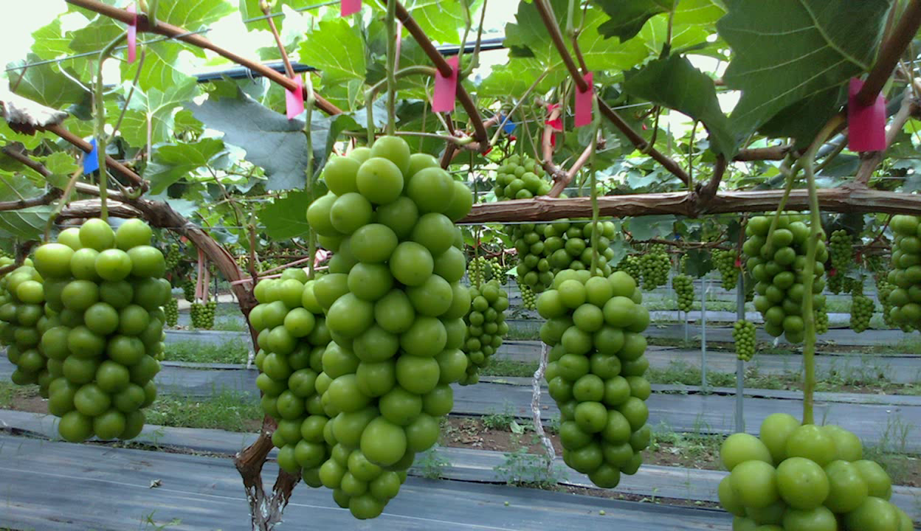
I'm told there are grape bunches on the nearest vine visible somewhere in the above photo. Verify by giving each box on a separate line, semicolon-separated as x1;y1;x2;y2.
717;413;913;530
33;218;173;442
306;136;474;472
249;268;332;488
0;264;52;398
536;268;651;488
319;444;408;520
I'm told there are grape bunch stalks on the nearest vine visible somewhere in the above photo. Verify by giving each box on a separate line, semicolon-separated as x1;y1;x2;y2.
801;111;846;426
385;1;396;136
96;30;127;224
364;66;435;147
590;95;601;277
301;72;317;280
